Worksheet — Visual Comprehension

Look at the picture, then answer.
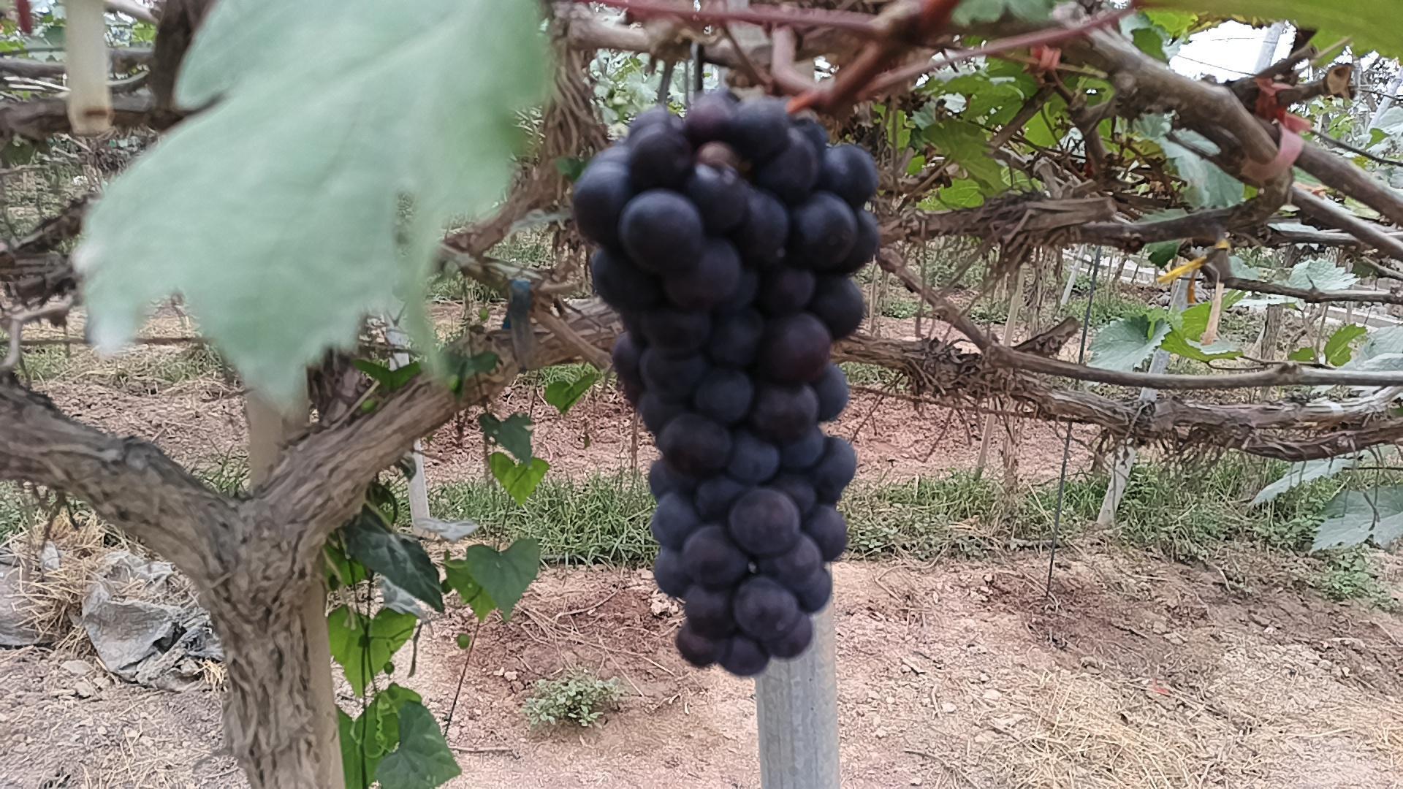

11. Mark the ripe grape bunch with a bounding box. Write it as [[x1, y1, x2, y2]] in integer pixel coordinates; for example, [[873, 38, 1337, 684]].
[[573, 91, 878, 675]]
